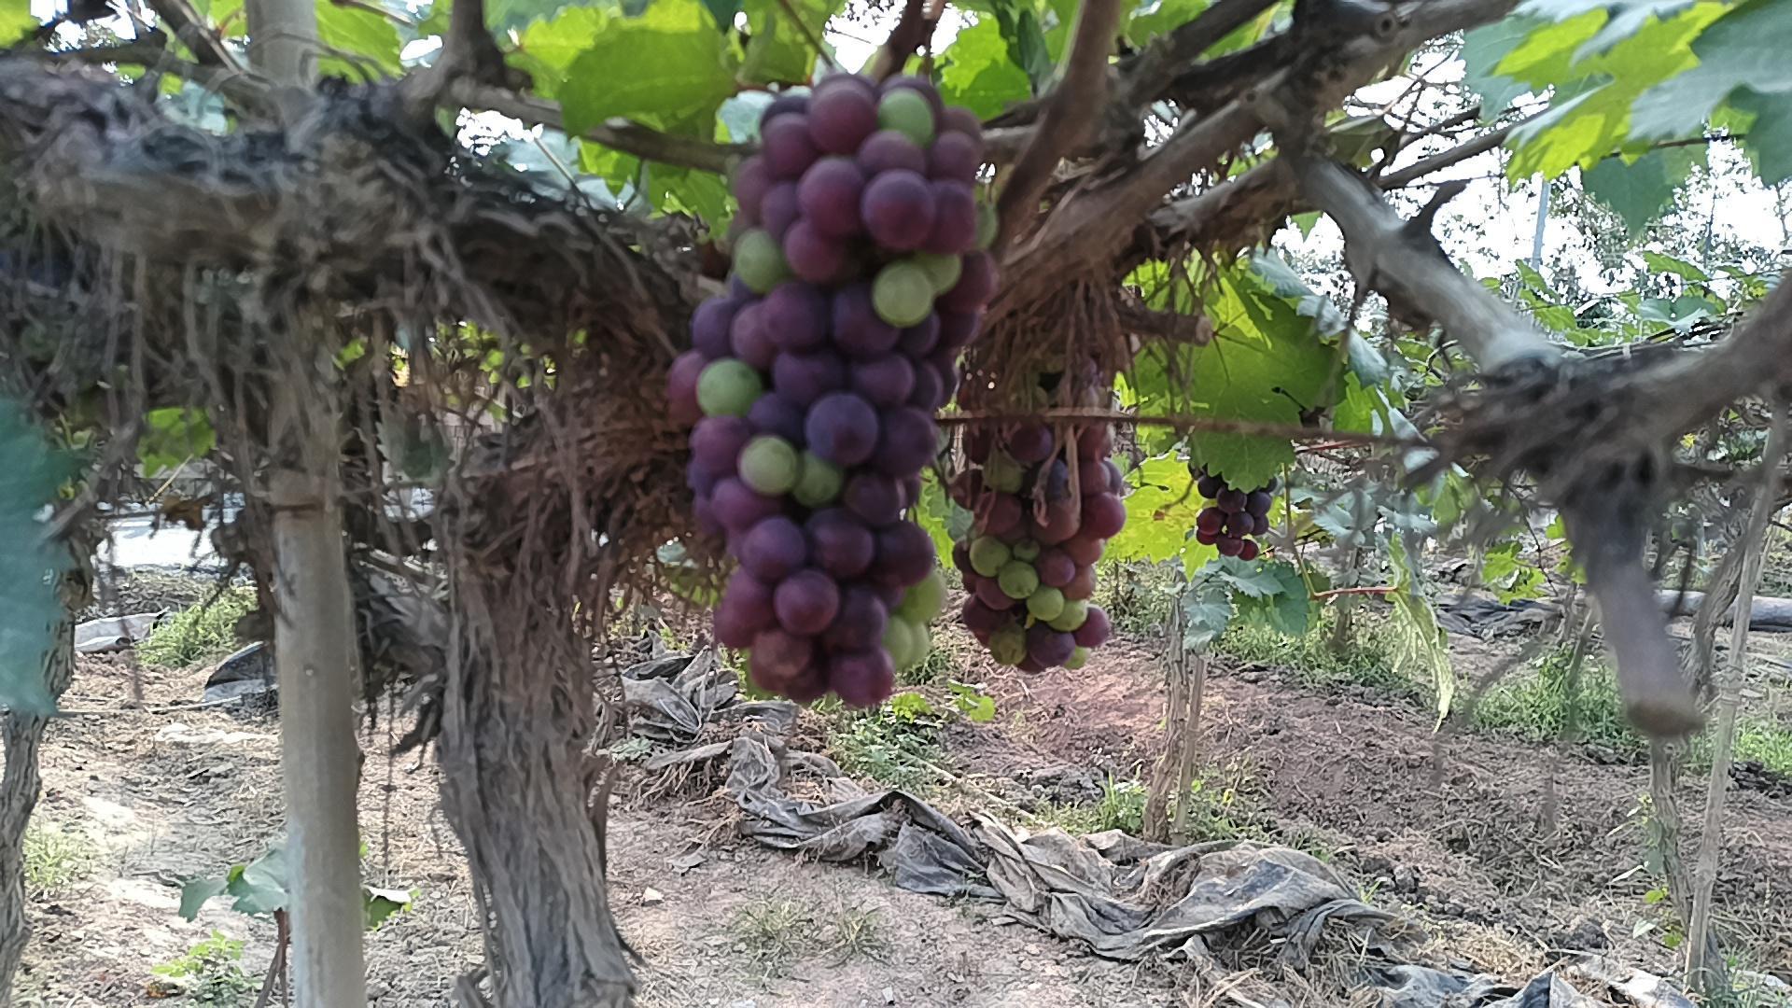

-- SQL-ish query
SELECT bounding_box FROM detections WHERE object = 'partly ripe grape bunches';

[951,404,1128,672]
[669,74,997,706]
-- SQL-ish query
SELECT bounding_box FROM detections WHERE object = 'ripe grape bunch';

[1190,465,1279,560]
